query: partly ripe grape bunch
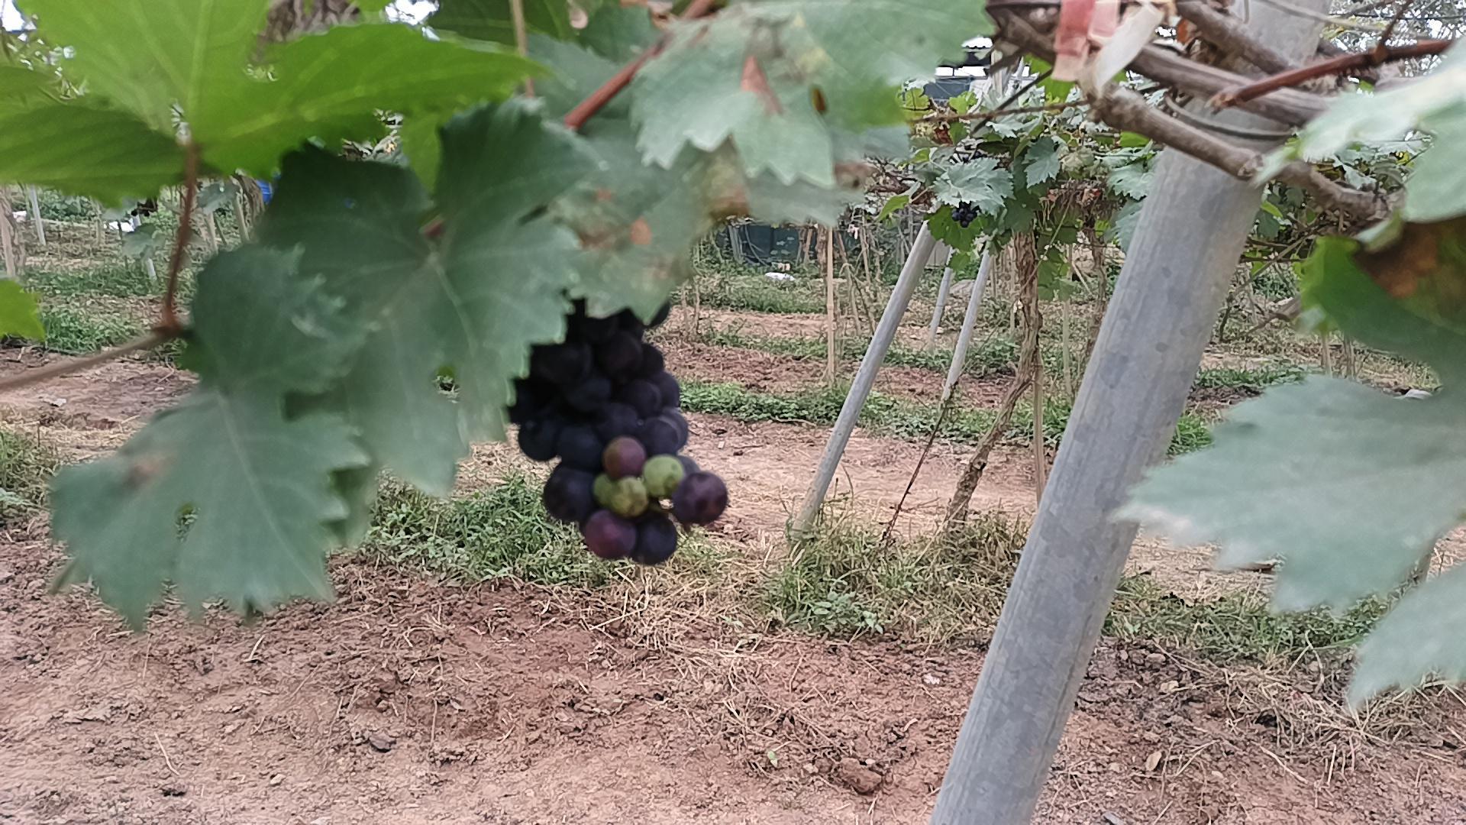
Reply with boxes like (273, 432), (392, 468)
(508, 301), (728, 565)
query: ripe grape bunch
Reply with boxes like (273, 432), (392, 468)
(949, 197), (983, 230)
